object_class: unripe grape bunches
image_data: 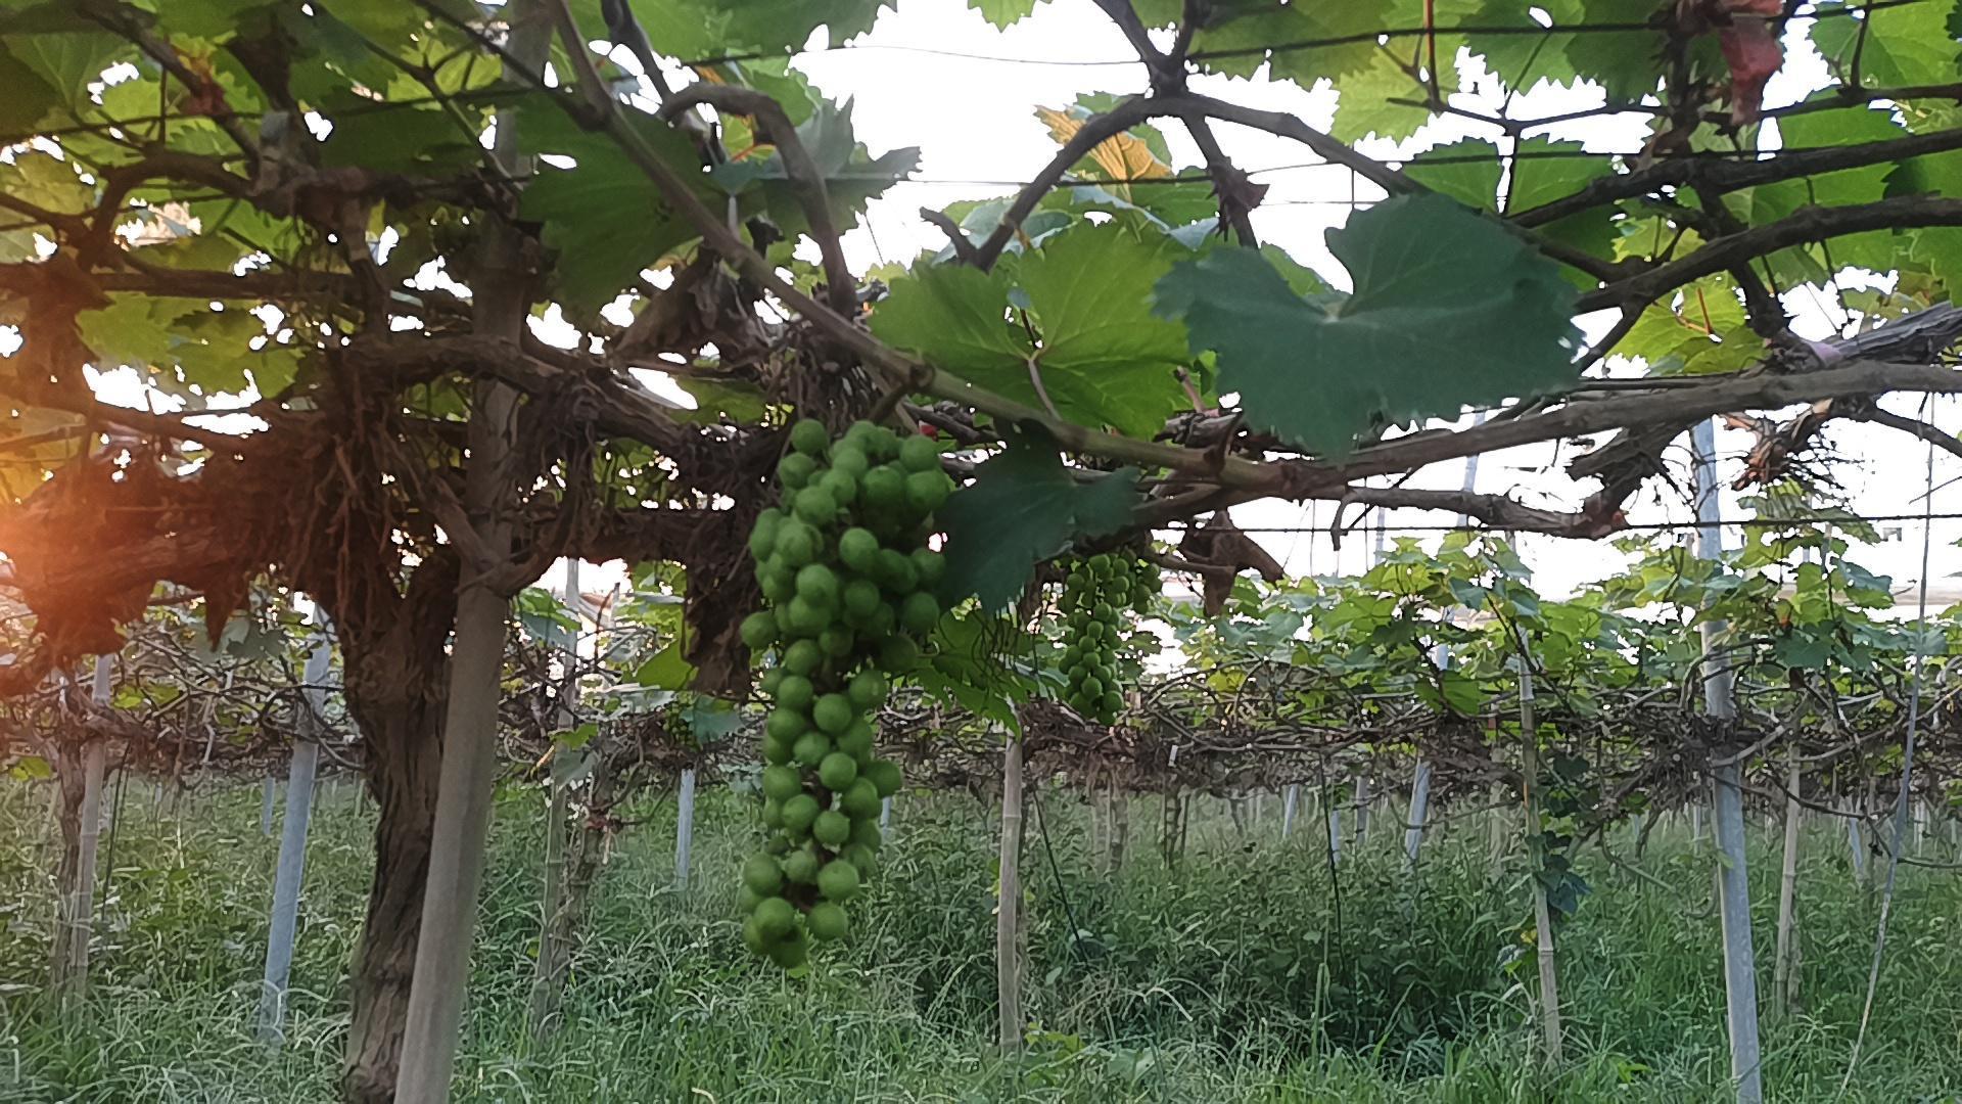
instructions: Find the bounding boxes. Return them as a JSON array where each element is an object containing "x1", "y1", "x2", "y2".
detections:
[
  {"x1": 740, "y1": 420, "x2": 951, "y2": 969},
  {"x1": 1055, "y1": 552, "x2": 1161, "y2": 726}
]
